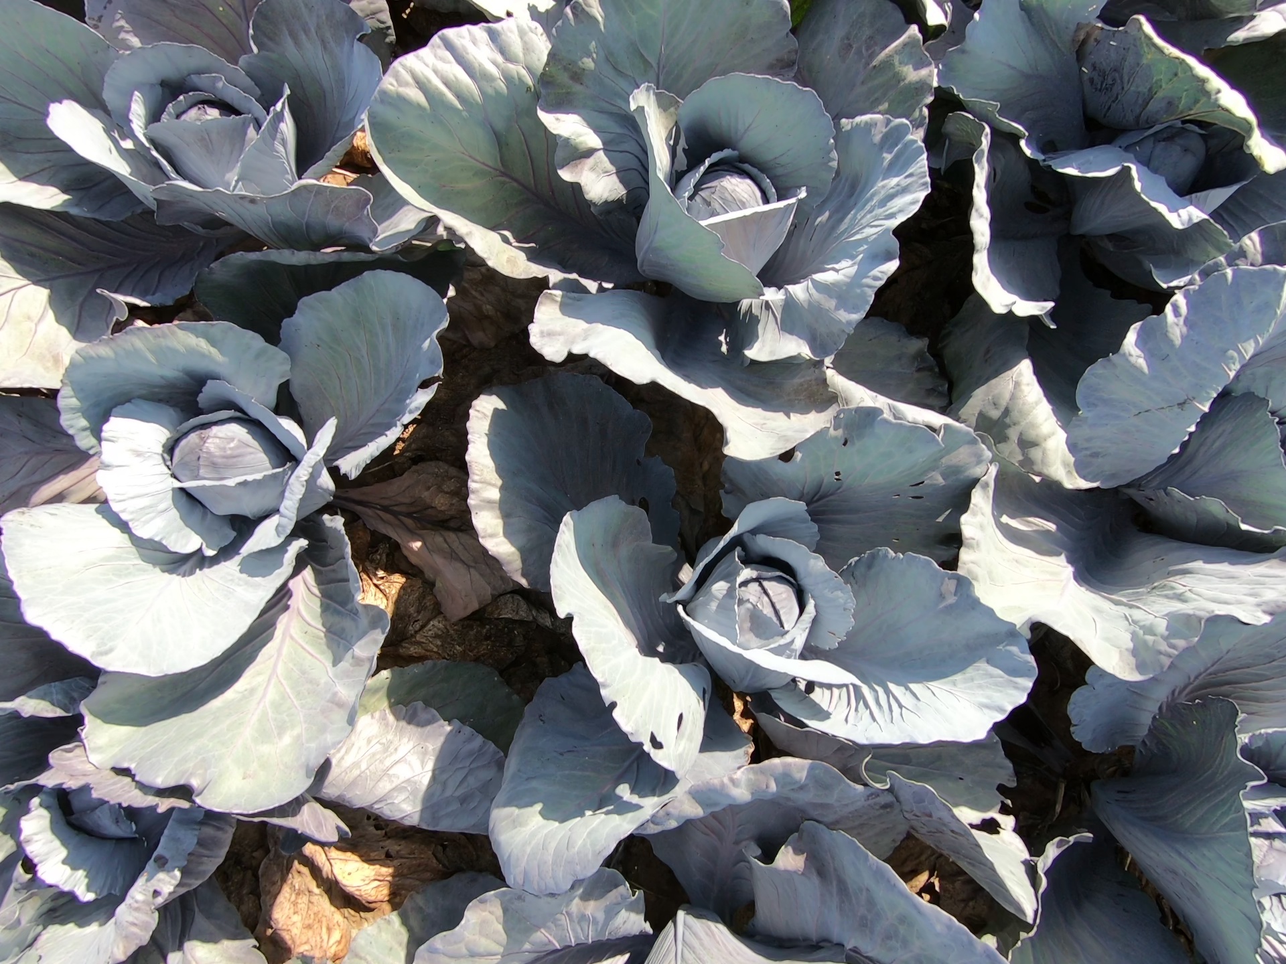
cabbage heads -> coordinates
[719,566,803,672]
[66,763,182,842]
[1154,783,1283,902]
[673,167,768,272]
[173,98,256,184]
[173,414,297,511]
[1102,123,1203,214]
